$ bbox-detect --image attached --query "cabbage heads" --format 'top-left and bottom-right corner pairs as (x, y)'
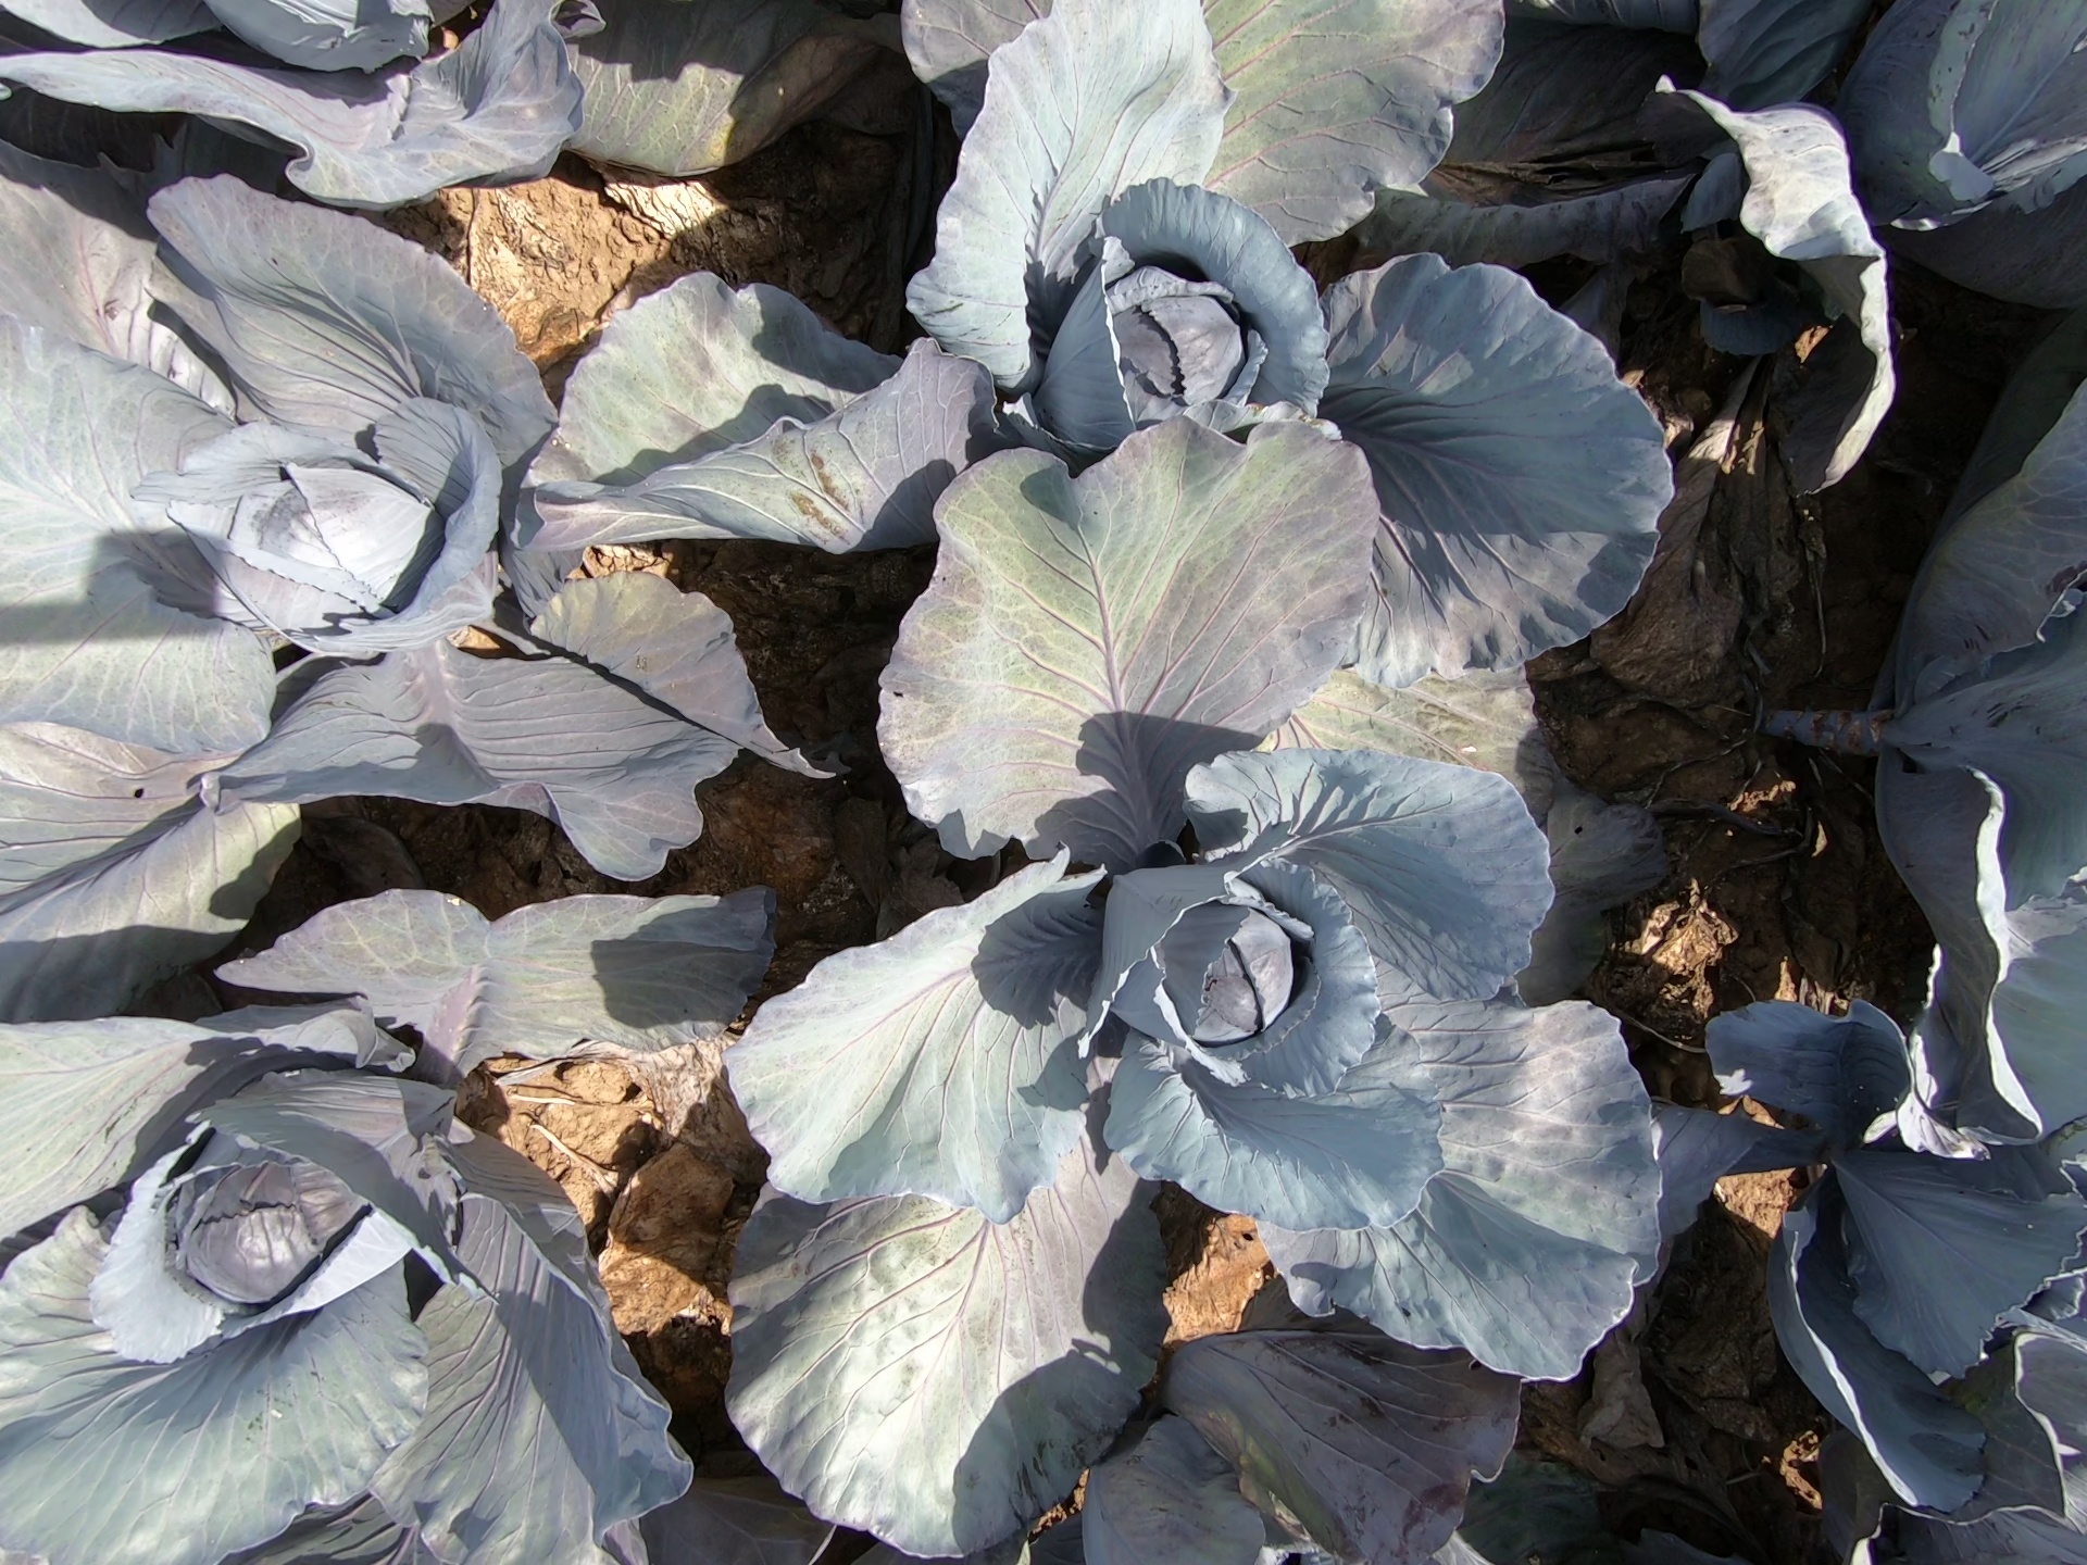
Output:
(1057, 265), (1255, 451)
(177, 1093), (425, 1306)
(230, 472), (438, 626)
(1142, 892), (1295, 1046)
